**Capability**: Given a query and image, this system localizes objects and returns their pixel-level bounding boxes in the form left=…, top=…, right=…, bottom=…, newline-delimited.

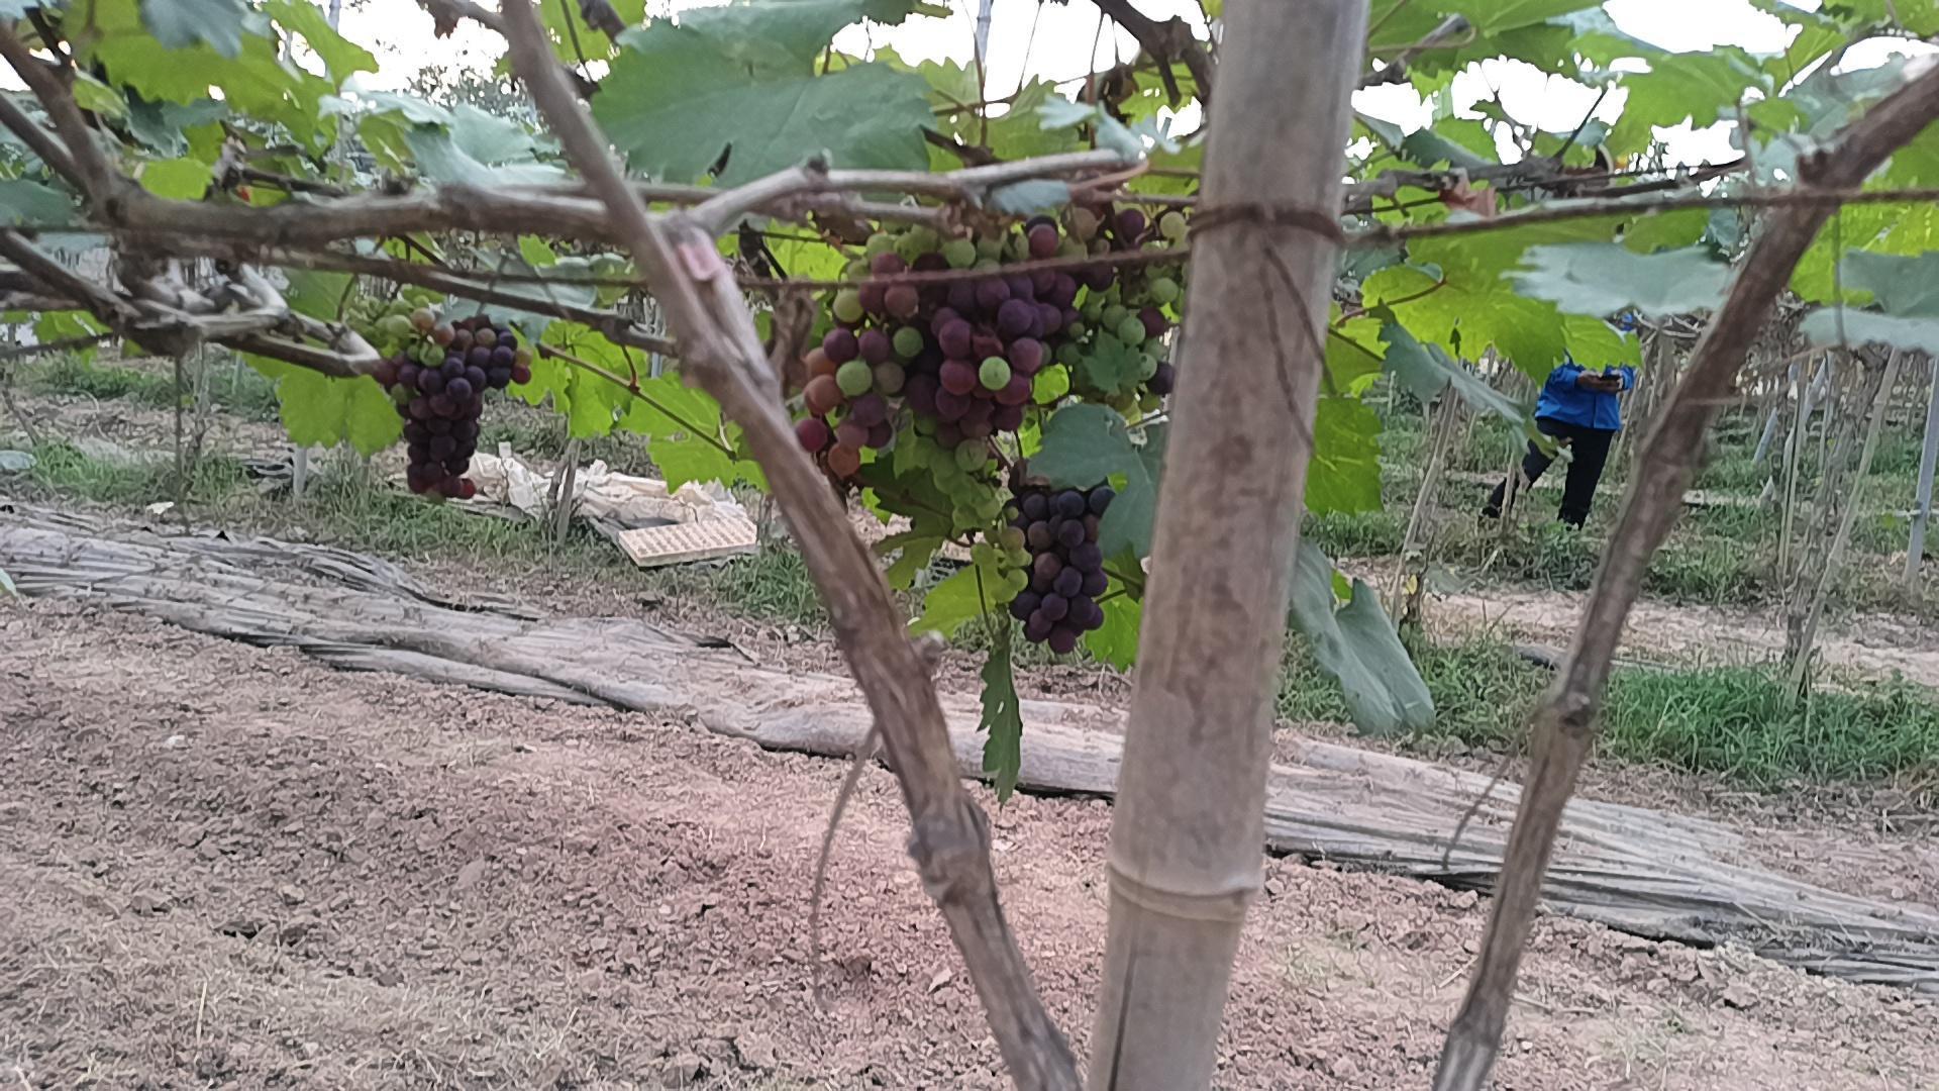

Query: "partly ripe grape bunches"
left=372, top=308, right=532, bottom=498
left=797, top=203, right=1188, bottom=603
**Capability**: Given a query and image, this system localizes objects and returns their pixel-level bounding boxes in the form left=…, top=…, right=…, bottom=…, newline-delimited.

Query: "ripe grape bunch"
left=1009, top=482, right=1114, bottom=654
